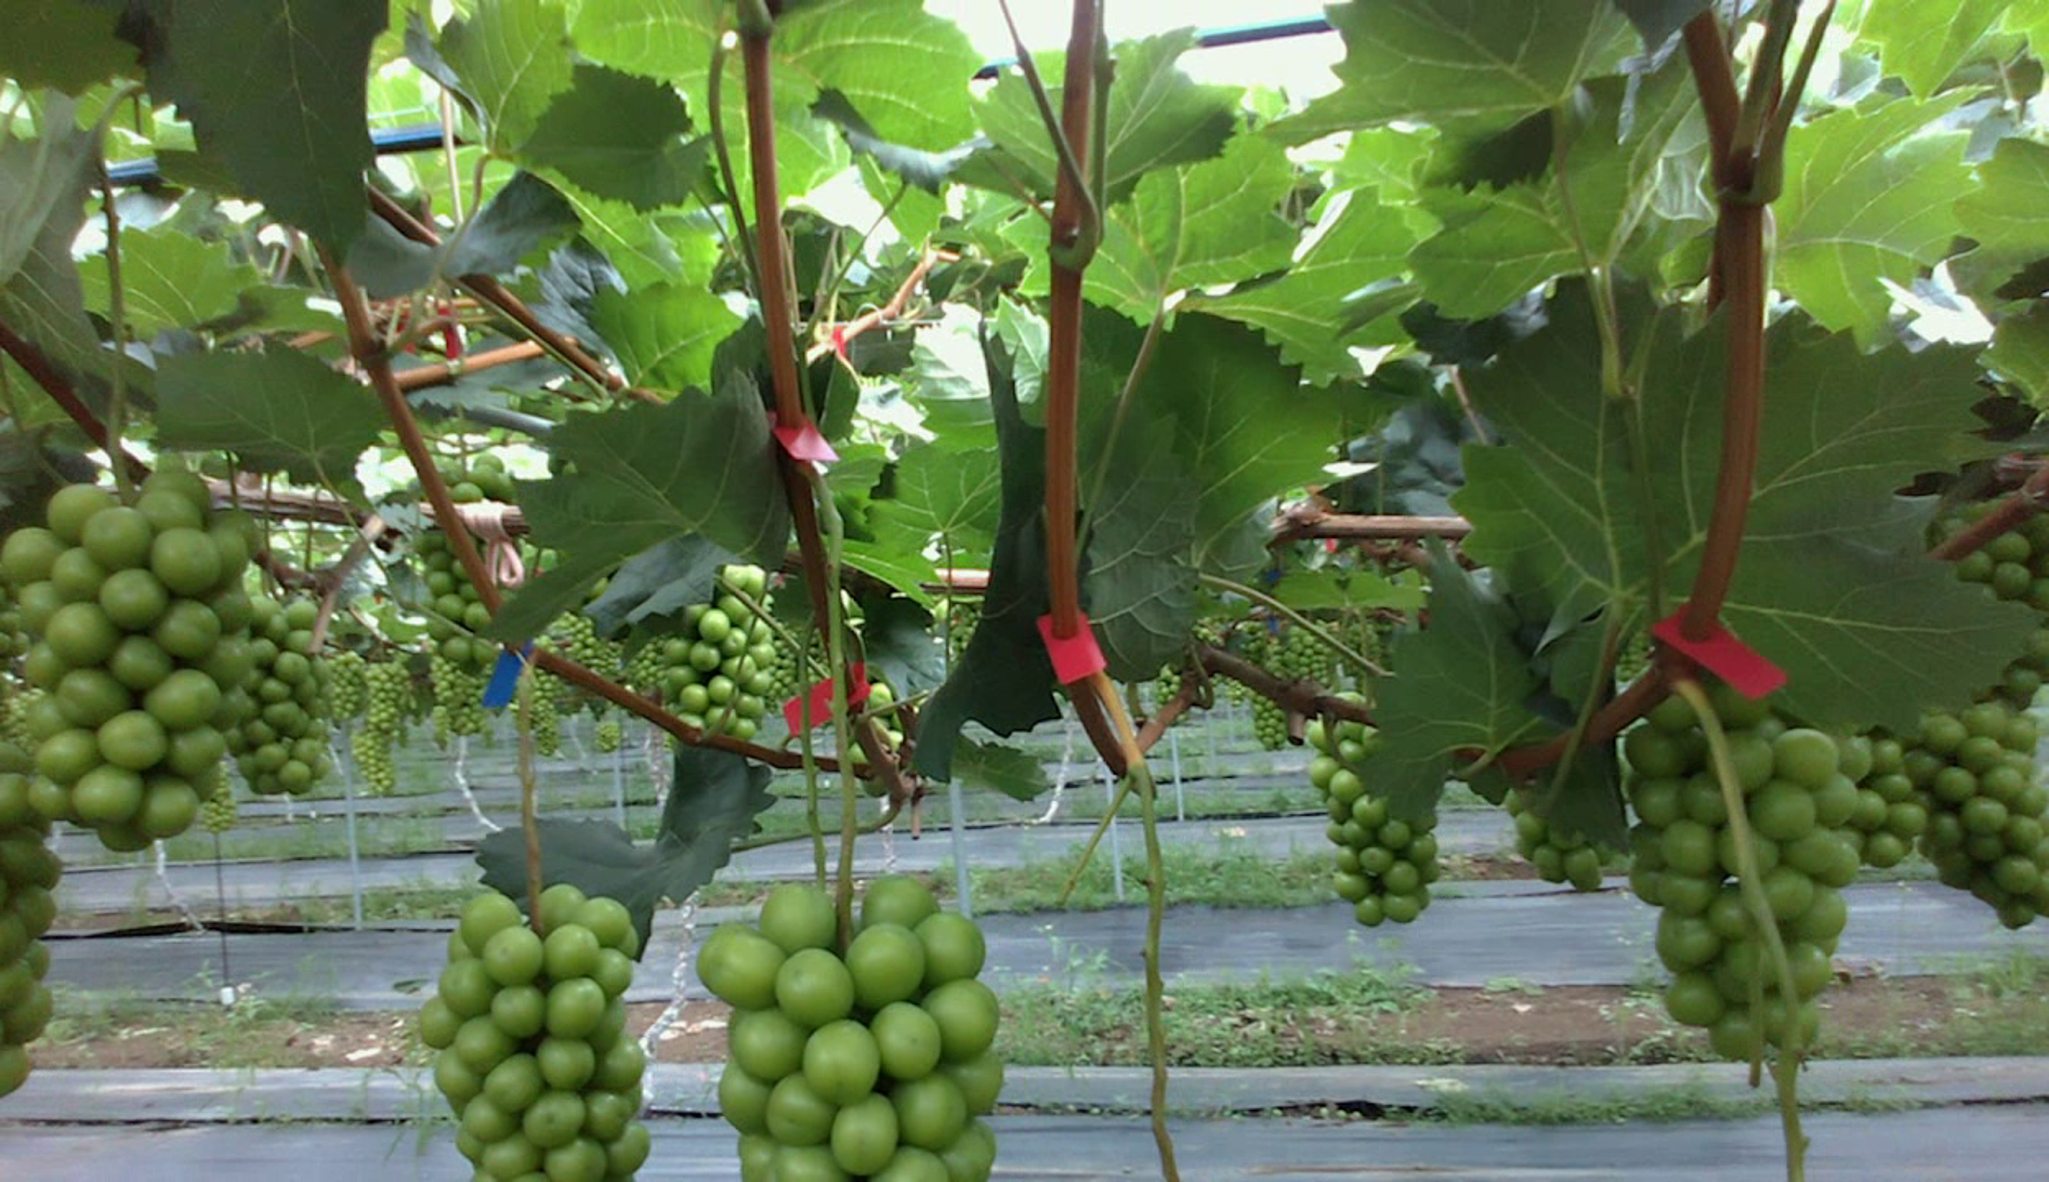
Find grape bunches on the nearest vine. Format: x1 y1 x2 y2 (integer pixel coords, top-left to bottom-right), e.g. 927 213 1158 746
419 885 650 1180
694 877 1005 1180
2 471 263 854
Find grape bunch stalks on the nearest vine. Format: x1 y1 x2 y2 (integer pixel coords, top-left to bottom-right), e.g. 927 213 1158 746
99 176 138 506
1678 675 1809 1175
796 461 857 960
1095 676 1182 1180
514 667 543 937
